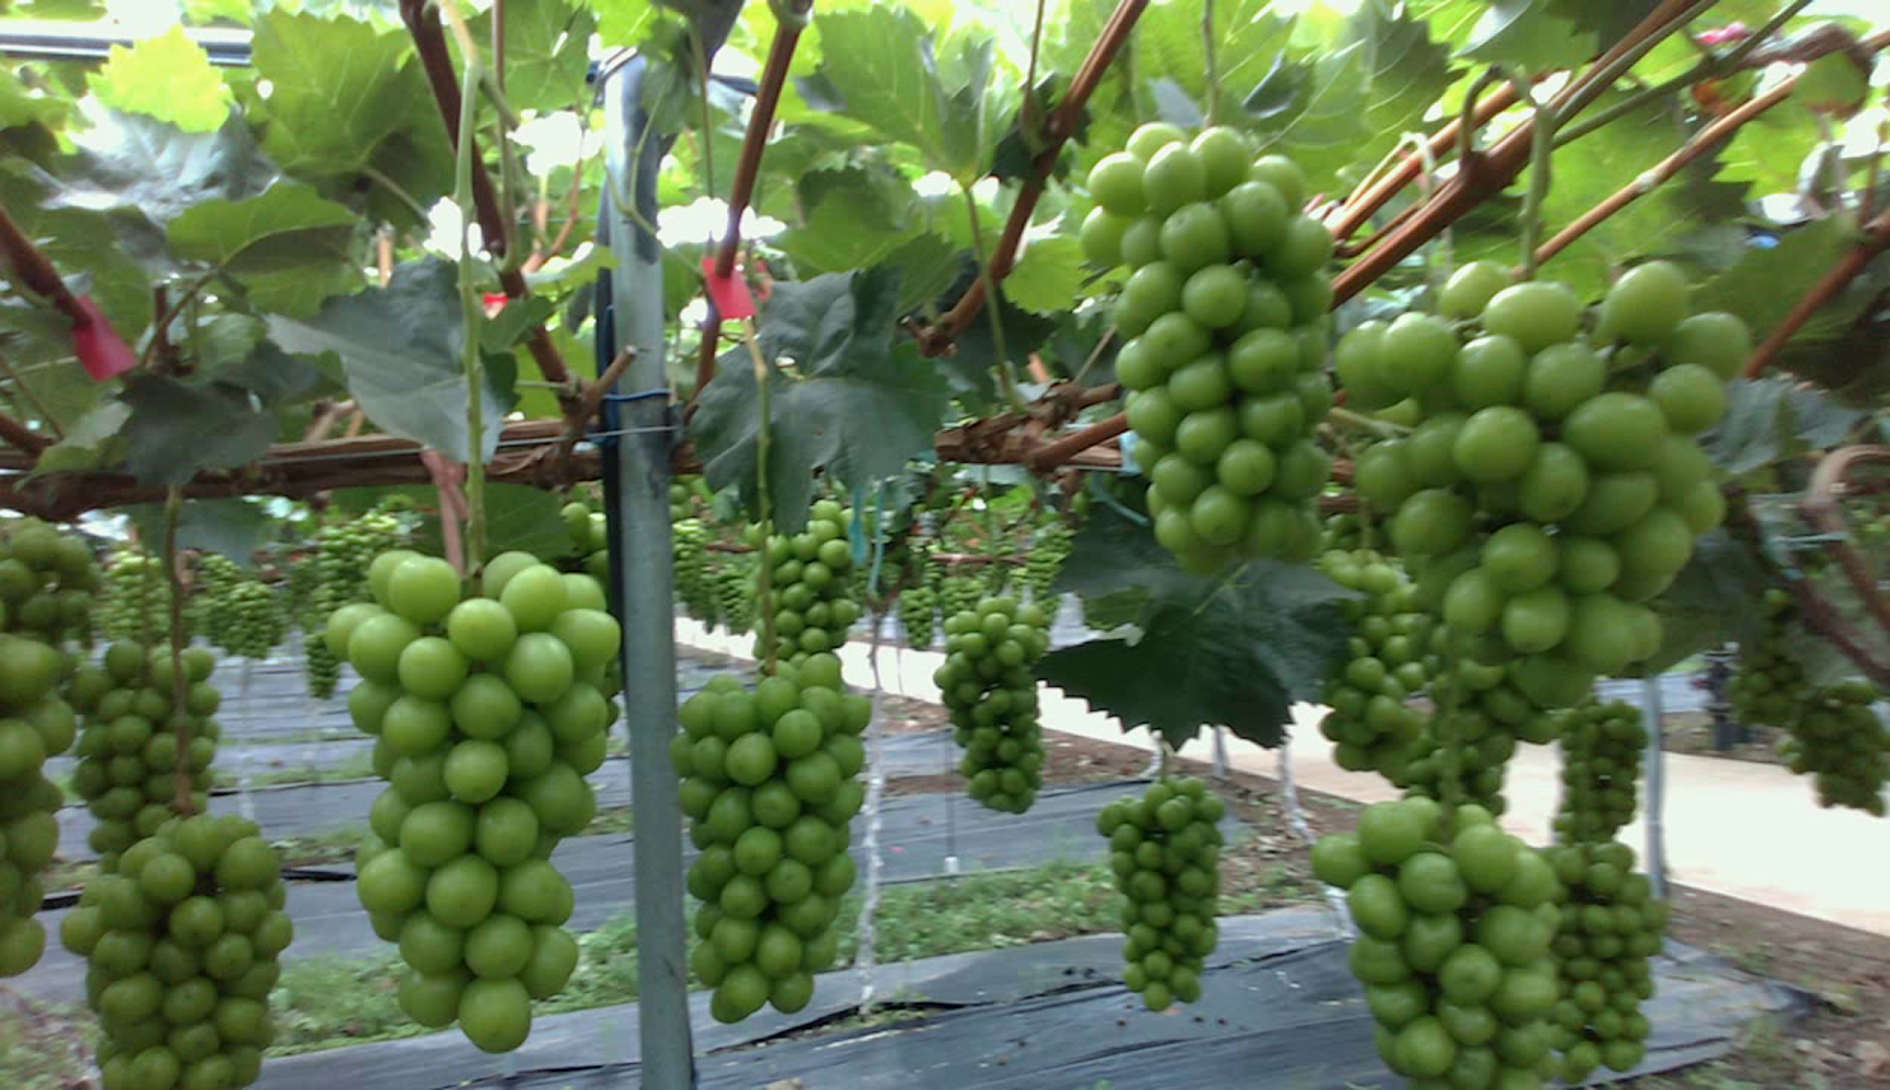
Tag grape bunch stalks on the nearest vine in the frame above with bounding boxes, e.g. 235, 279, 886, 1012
742, 322, 775, 674
441, 2, 521, 595
1198, 0, 1219, 124
1443, 646, 1460, 839
165, 494, 198, 817
1458, 64, 1551, 280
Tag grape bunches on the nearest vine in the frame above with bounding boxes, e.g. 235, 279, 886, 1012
1336, 259, 1749, 705
1077, 118, 1337, 575
674, 654, 874, 1023
1313, 793, 1560, 1088
323, 548, 621, 1052
59, 817, 294, 1088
